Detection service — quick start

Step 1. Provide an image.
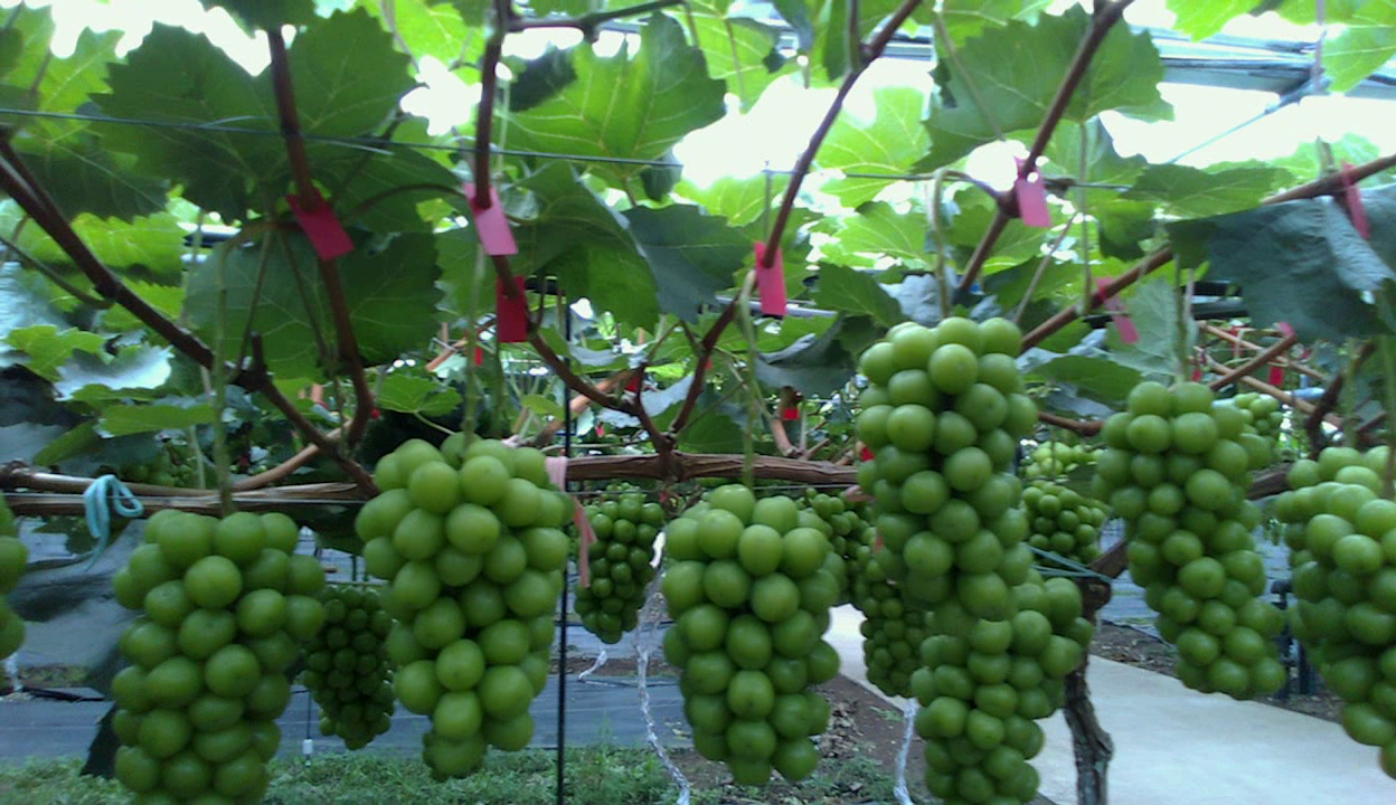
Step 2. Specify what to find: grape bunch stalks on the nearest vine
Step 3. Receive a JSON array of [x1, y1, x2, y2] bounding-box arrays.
[[462, 240, 487, 446], [1173, 255, 1191, 381], [737, 268, 757, 490], [928, 169, 968, 318], [211, 220, 305, 515]]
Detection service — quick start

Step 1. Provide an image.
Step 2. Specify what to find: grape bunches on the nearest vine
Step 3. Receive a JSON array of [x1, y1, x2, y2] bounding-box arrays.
[[353, 430, 574, 775], [852, 316, 1039, 616], [110, 509, 324, 803], [661, 484, 845, 789], [1091, 381, 1287, 702], [1274, 446, 1395, 779], [912, 569, 1093, 804]]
